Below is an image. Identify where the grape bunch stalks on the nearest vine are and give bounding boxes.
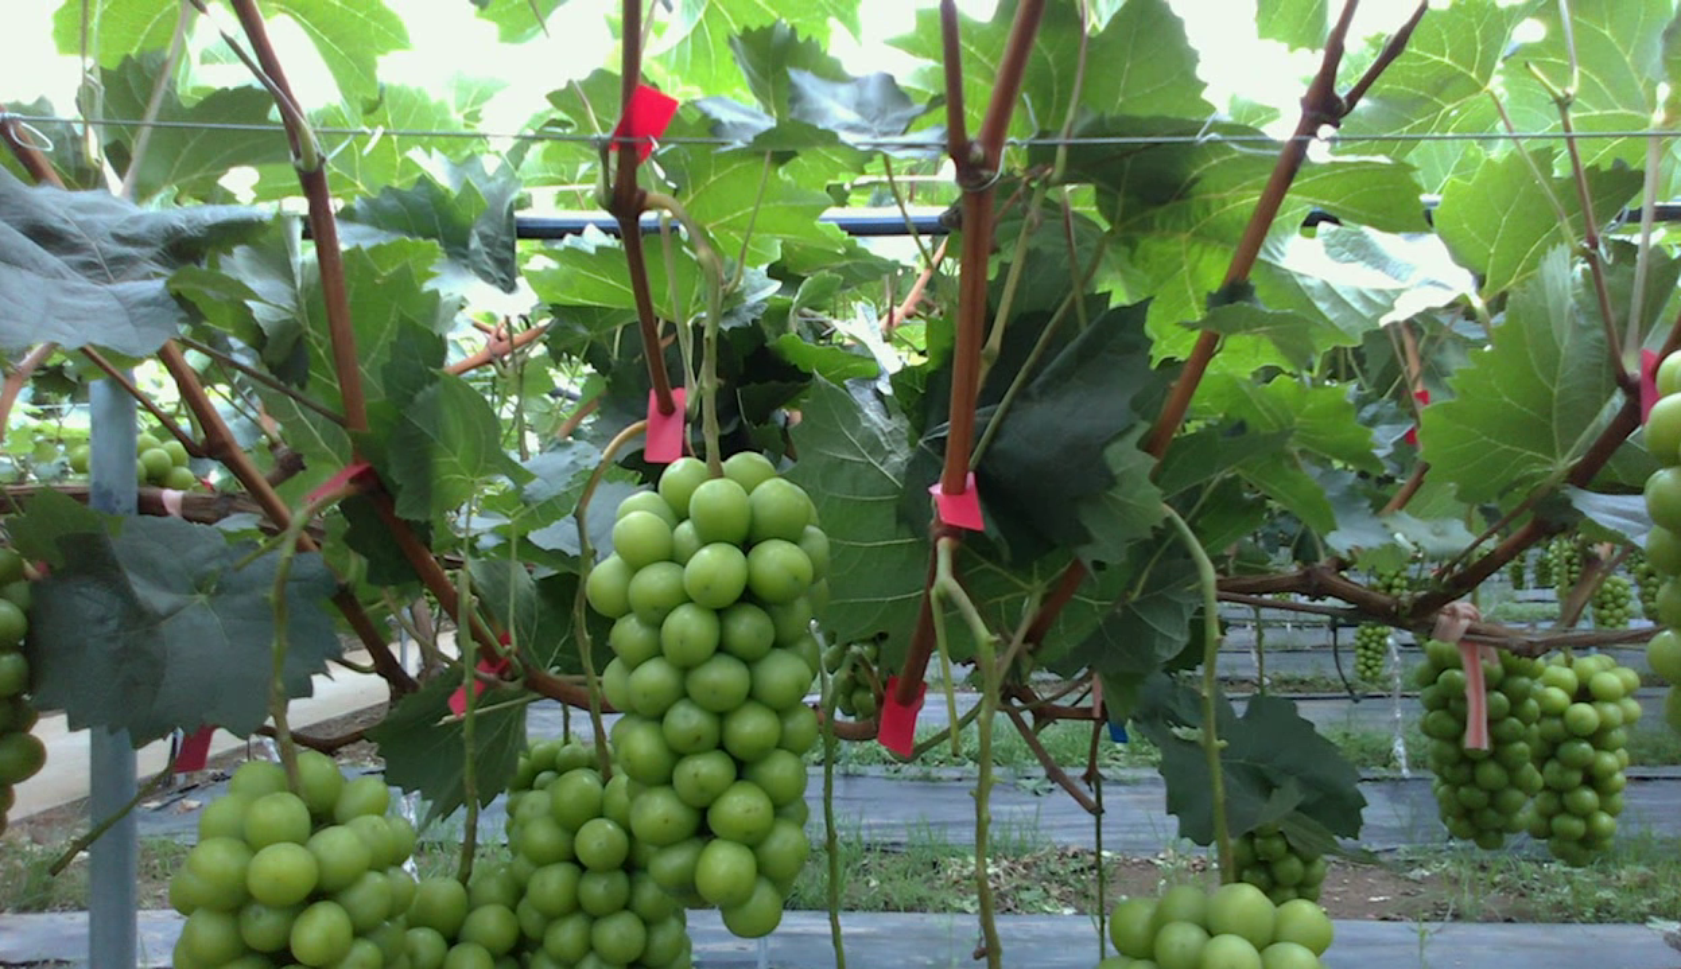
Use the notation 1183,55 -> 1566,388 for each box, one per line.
1165,502 -> 1235,886
644,191 -> 726,480
265,480 -> 368,808
572,420 -> 645,790
453,572 -> 478,887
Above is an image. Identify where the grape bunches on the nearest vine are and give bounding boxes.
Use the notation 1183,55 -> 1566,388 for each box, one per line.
1094,883 -> 1335,966
166,750 -> 418,968
586,452 -> 832,938
512,763 -> 694,968
0,545 -> 46,833
395,860 -> 527,968
1641,347 -> 1680,725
